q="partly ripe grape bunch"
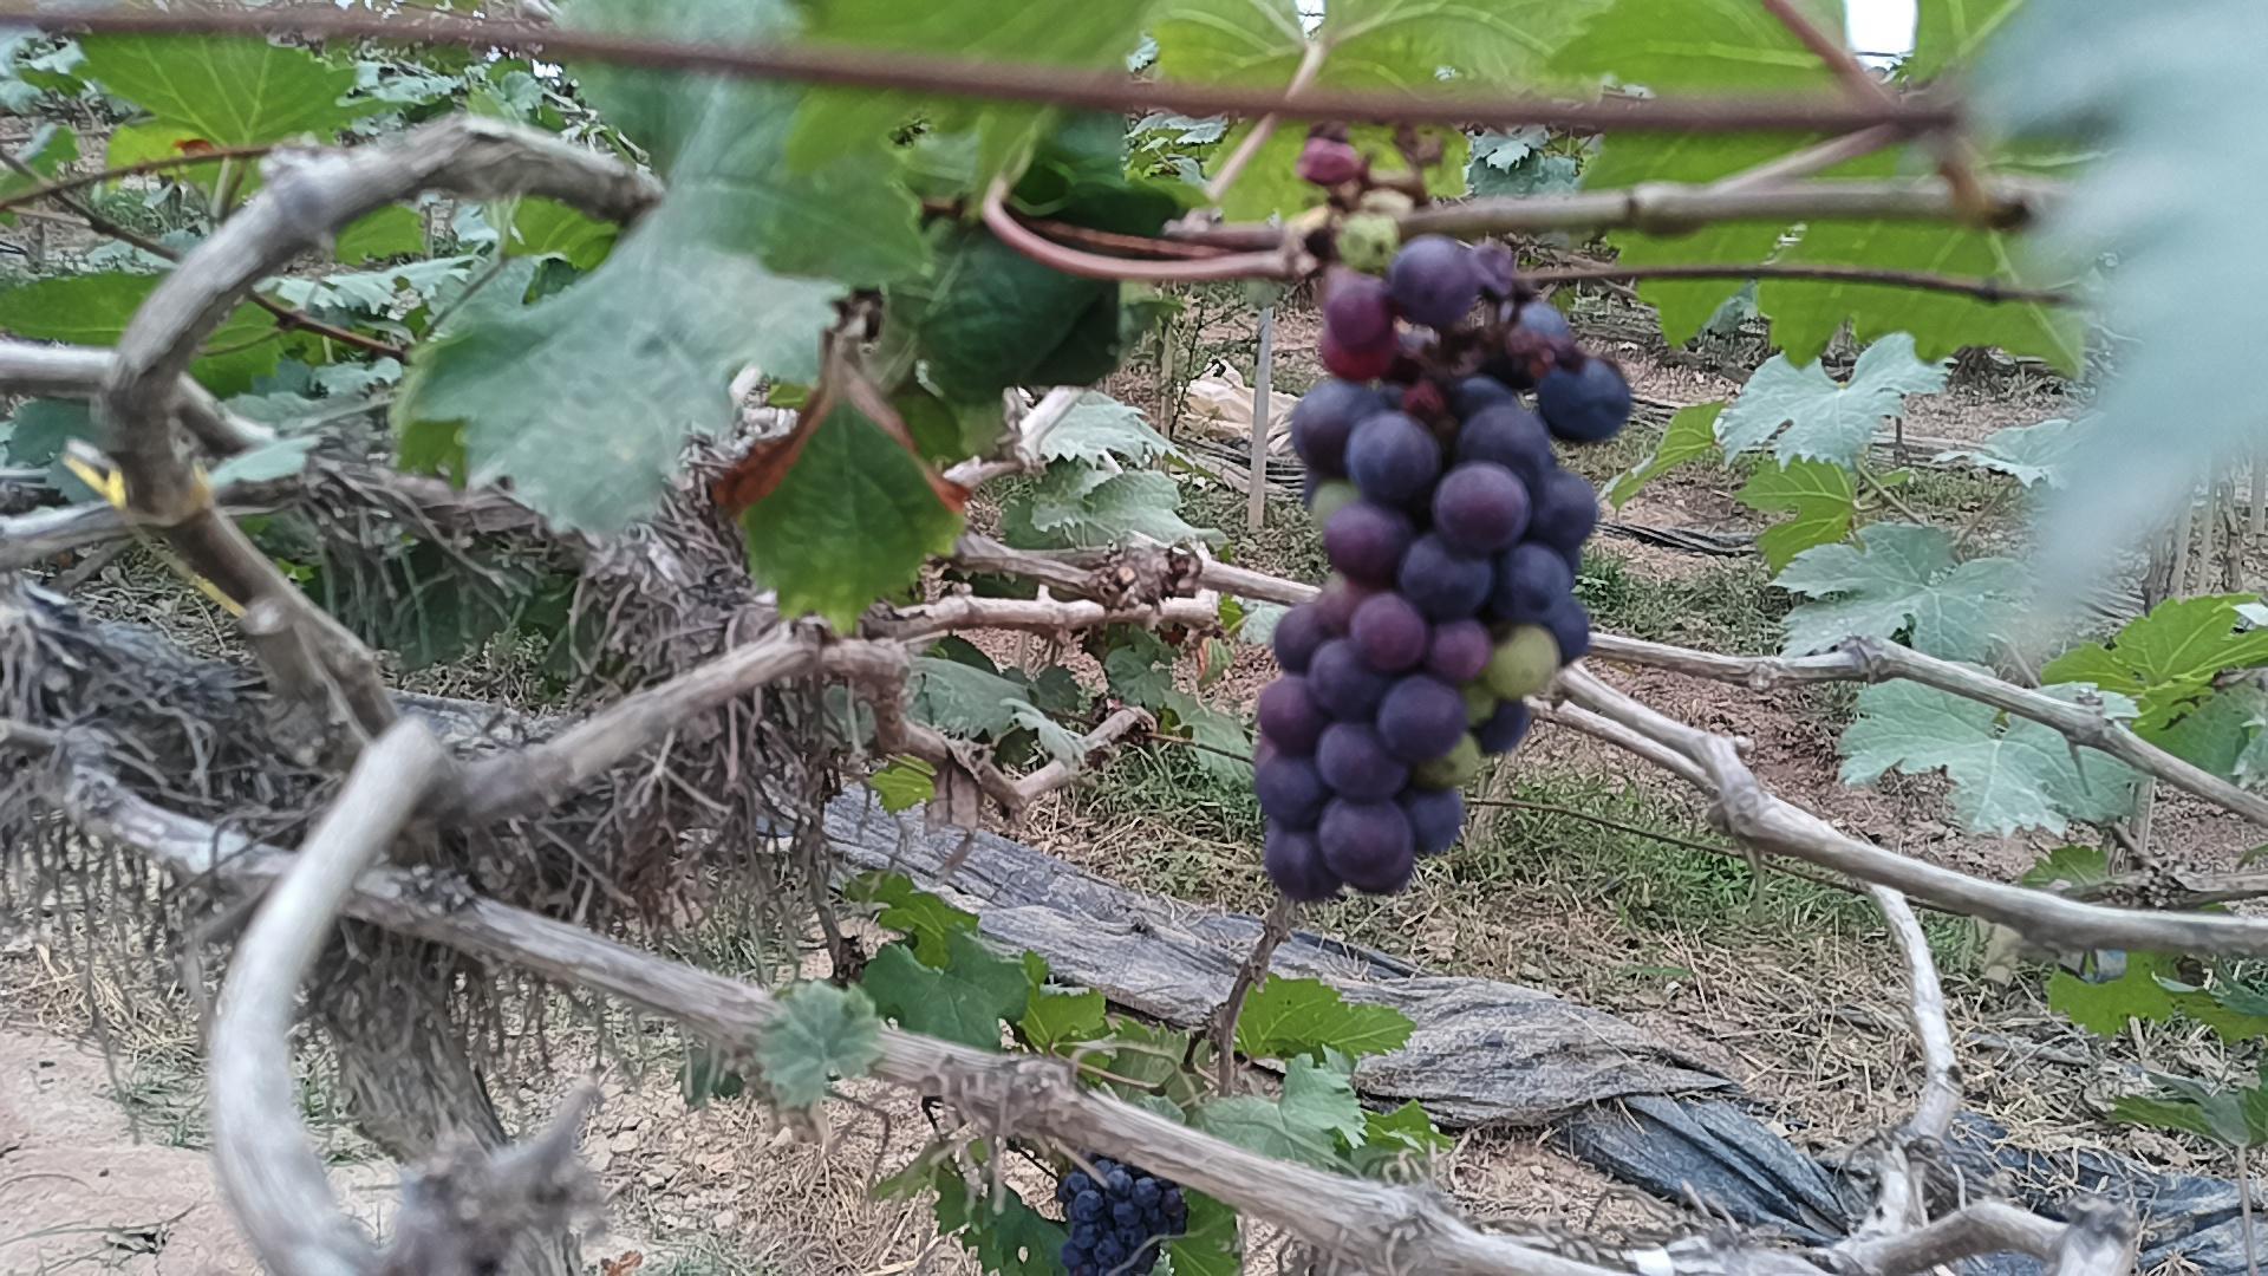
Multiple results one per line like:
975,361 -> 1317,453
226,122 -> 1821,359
1252,125 -> 1632,901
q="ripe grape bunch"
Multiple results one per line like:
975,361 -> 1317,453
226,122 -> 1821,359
1056,1157 -> 1188,1275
